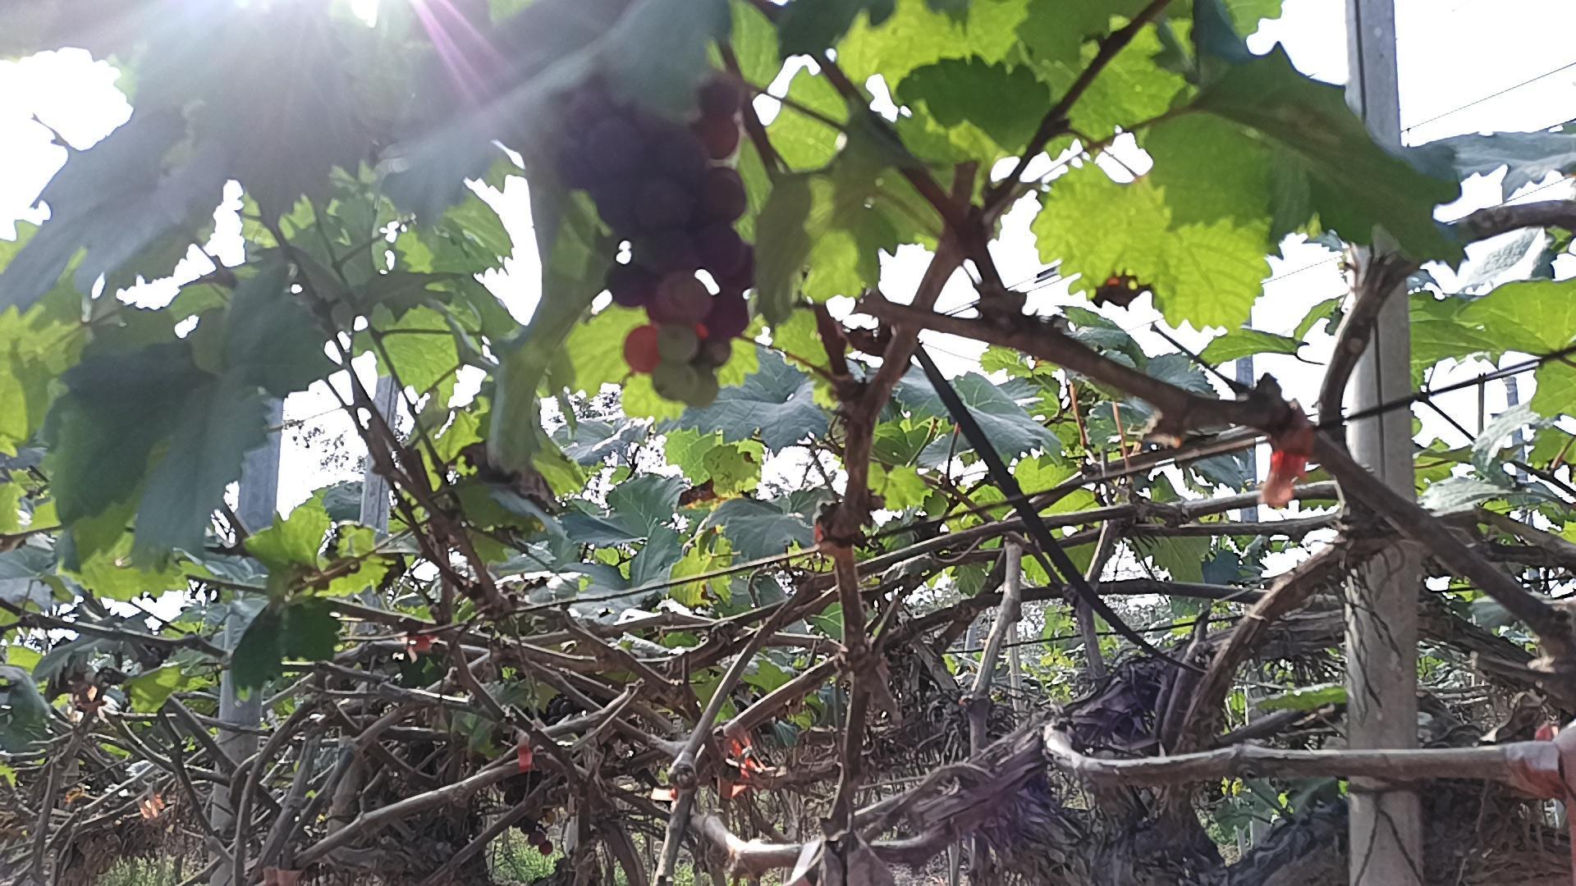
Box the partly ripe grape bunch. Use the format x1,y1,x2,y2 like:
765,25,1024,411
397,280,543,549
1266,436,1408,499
549,73,755,409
